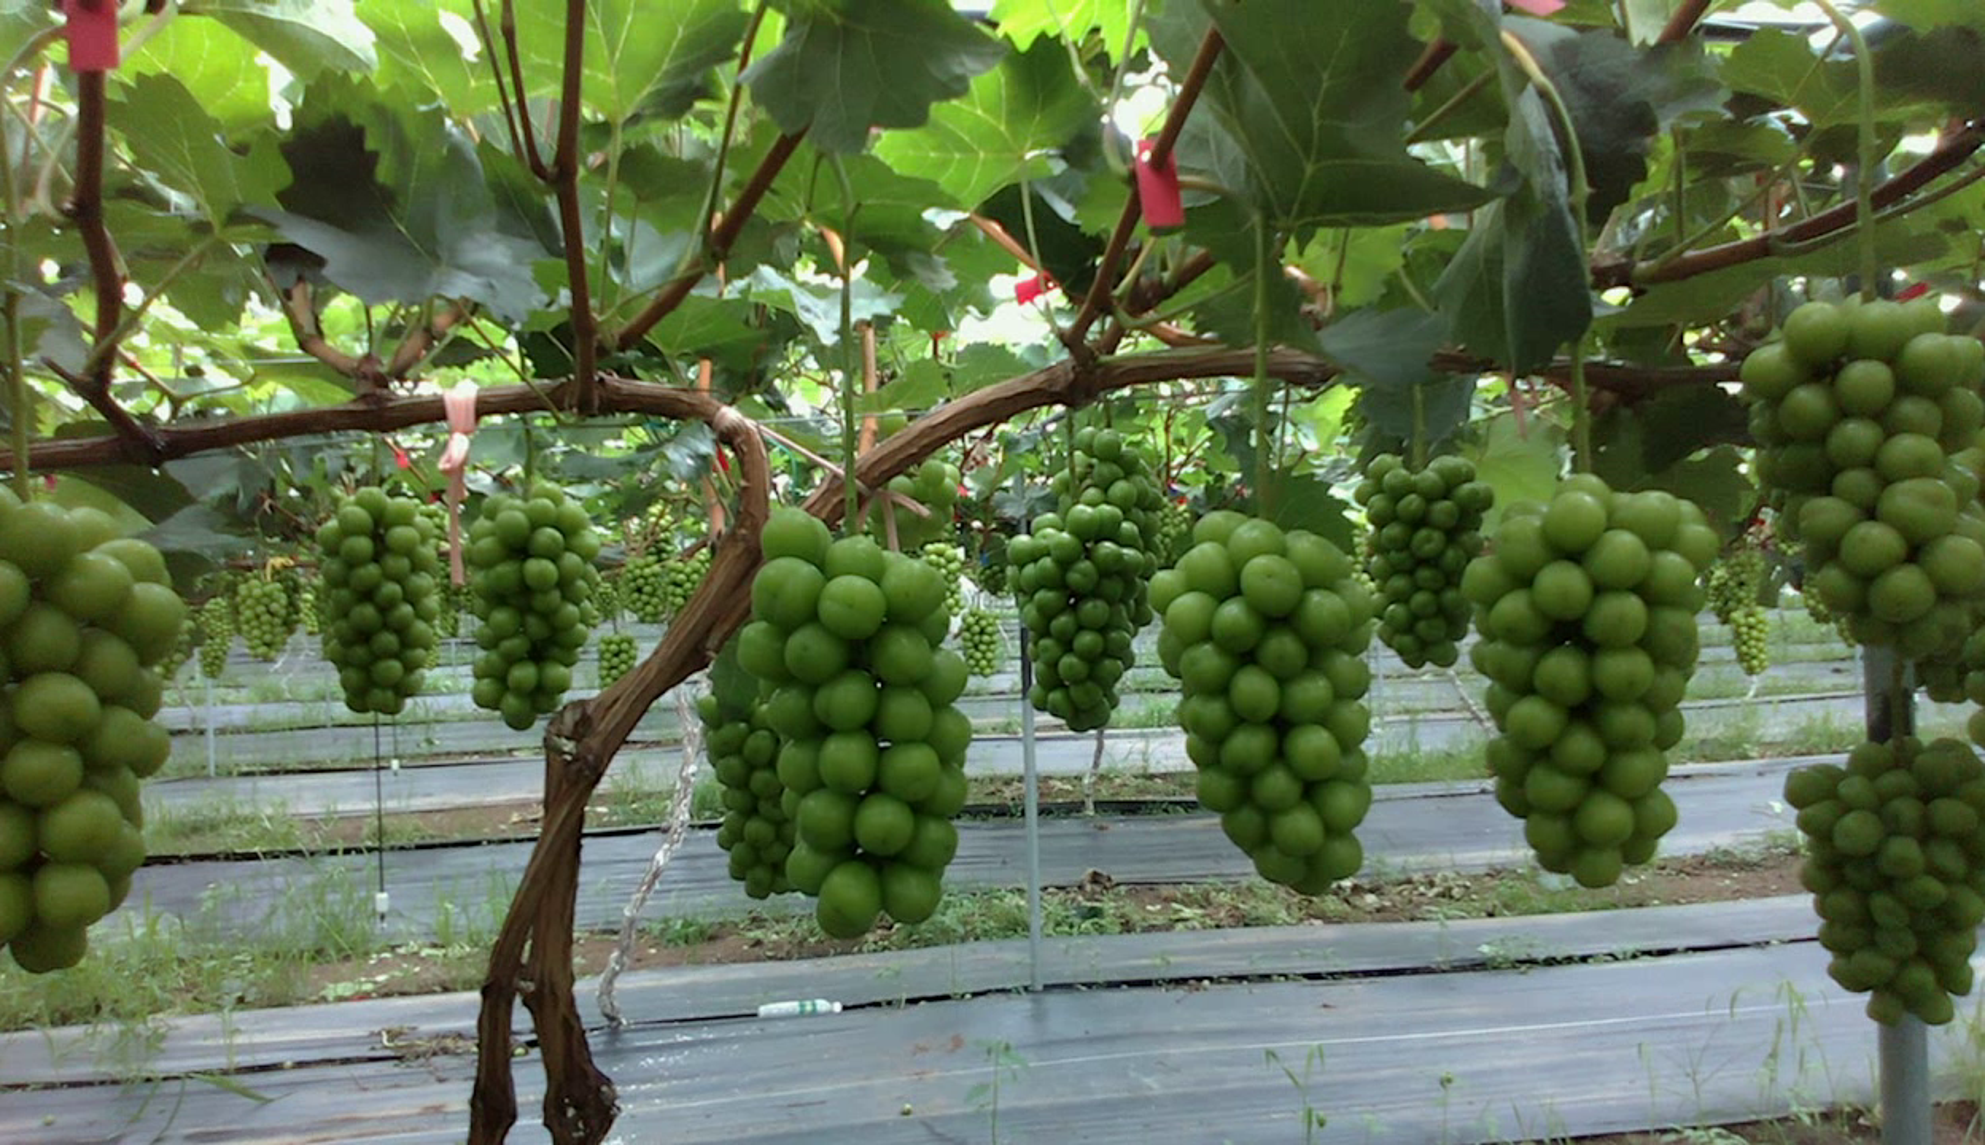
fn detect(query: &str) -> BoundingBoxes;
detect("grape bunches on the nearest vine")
[1738,293,1983,654]
[0,480,188,975]
[1462,474,1721,891]
[1783,736,1983,1027]
[1145,510,1373,897]
[735,507,972,940]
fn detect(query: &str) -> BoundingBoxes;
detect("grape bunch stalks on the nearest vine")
[824,153,860,536]
[1179,175,1271,520]
[2,296,35,503]
[1890,654,1905,739]
[1813,0,1882,304]
[1568,342,1591,472]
